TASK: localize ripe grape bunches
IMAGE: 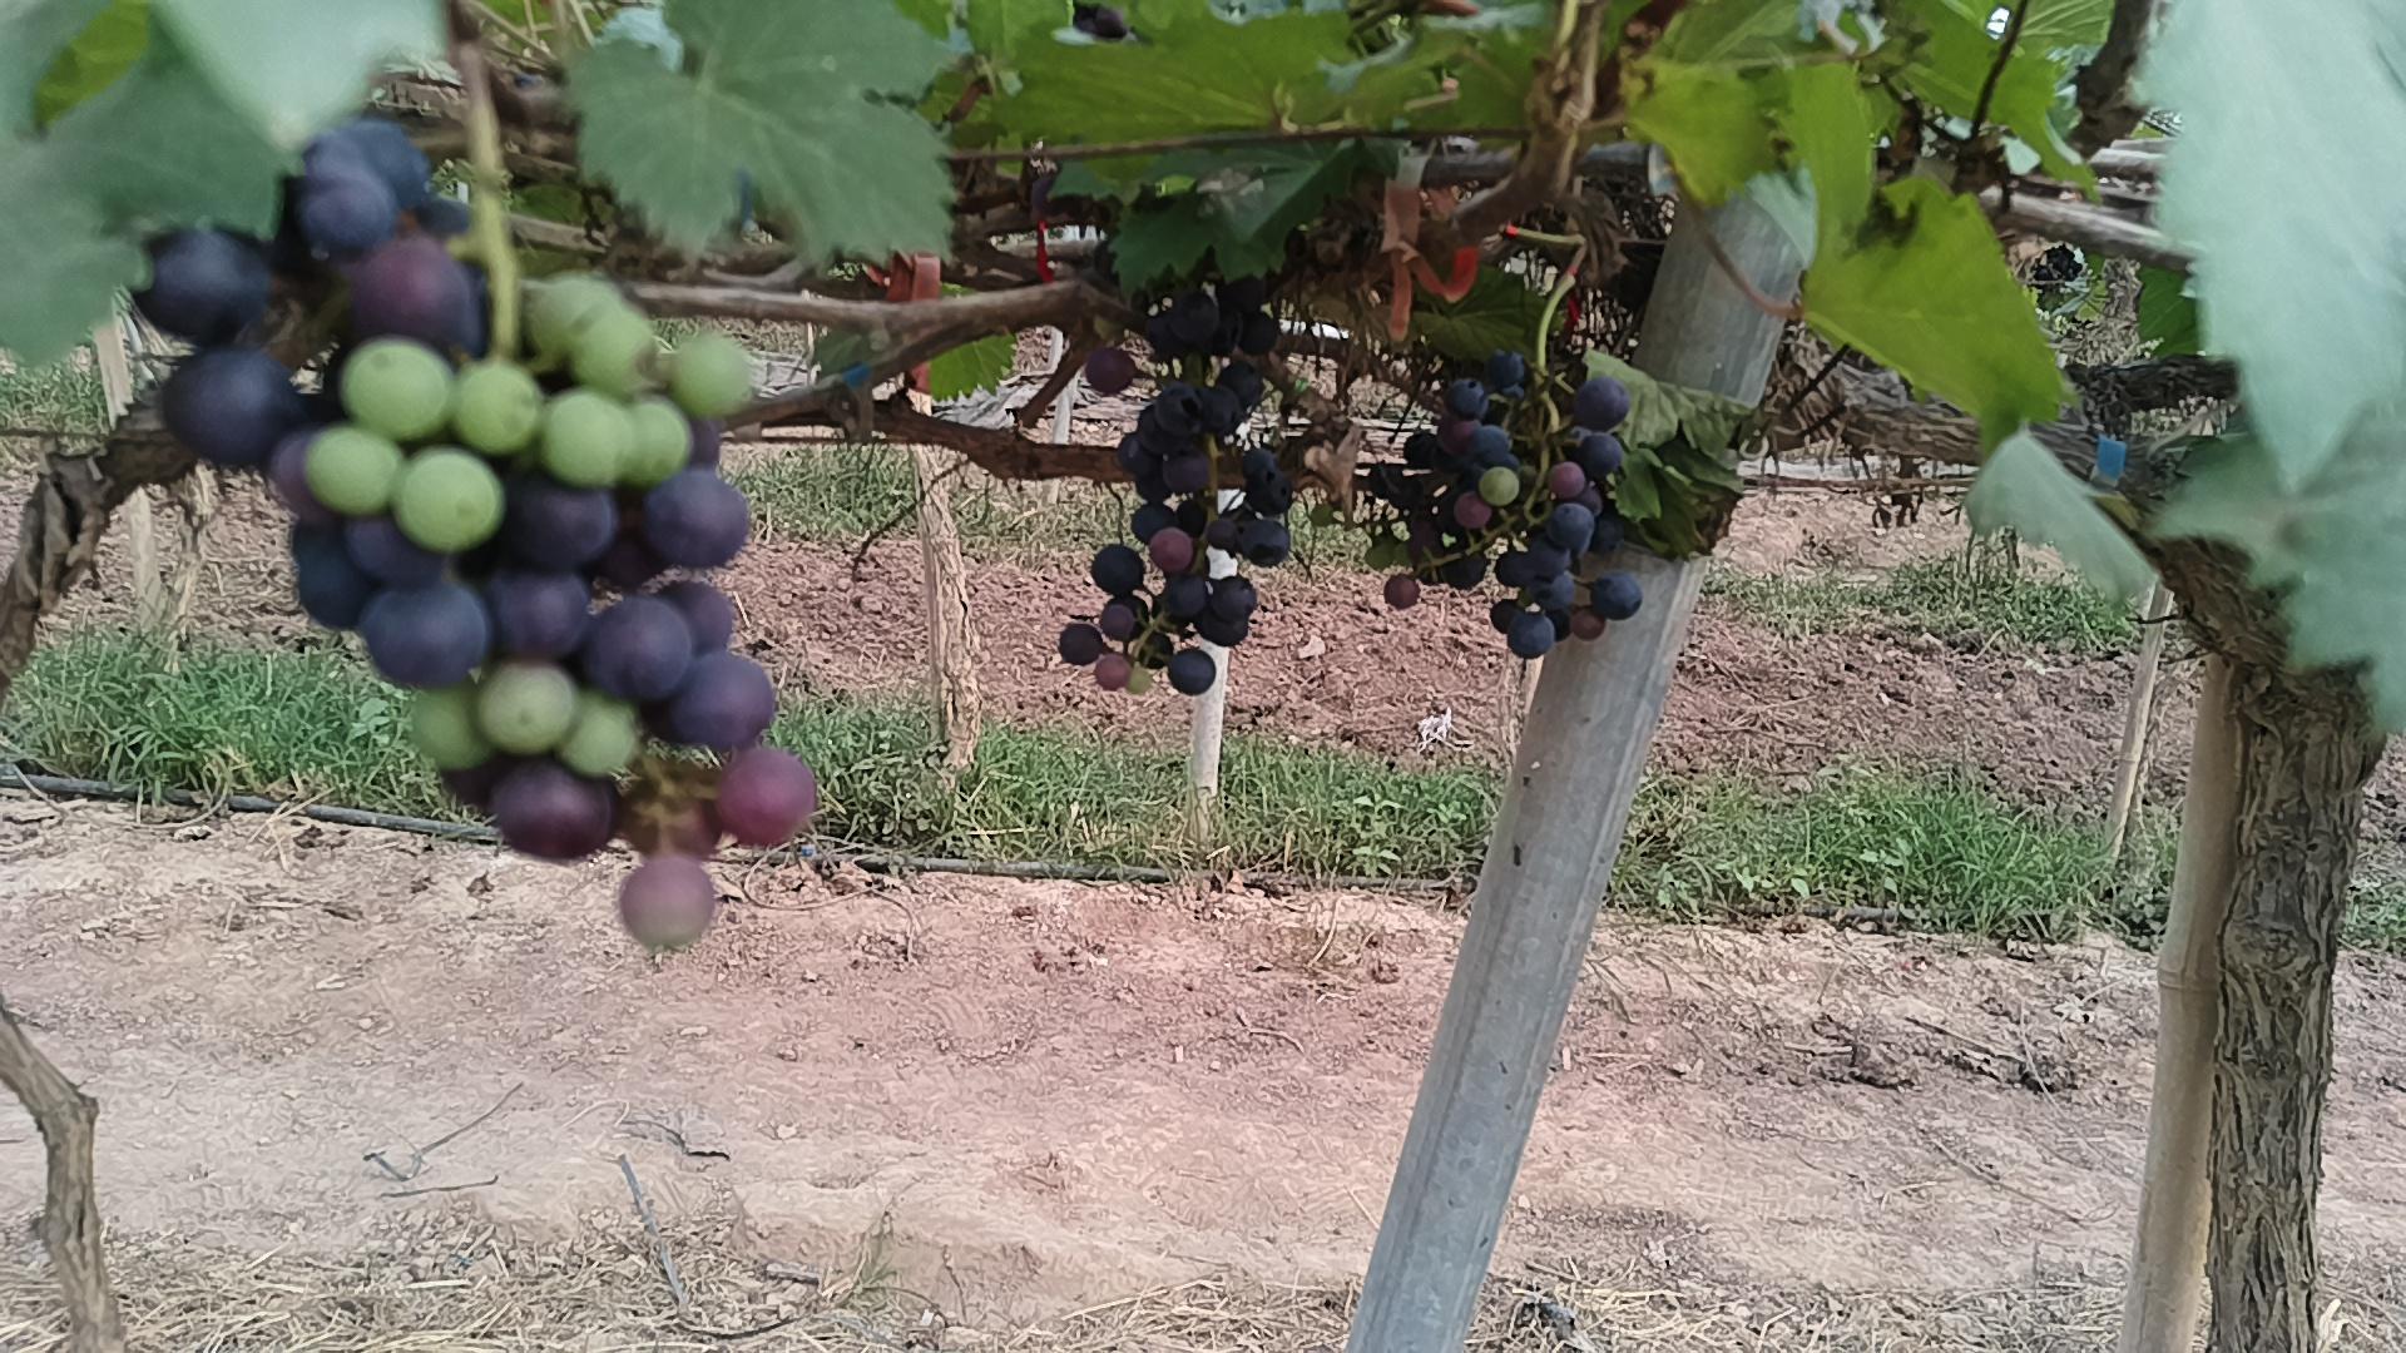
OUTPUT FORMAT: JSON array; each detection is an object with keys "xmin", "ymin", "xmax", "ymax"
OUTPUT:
[
  {"xmin": 1059, "ymin": 282, "xmax": 1292, "ymax": 694},
  {"xmin": 2029, "ymin": 244, "xmax": 2084, "ymax": 308}
]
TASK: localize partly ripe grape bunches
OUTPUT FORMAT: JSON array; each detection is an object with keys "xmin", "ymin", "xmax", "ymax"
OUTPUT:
[
  {"xmin": 132, "ymin": 119, "xmax": 815, "ymax": 947},
  {"xmin": 1366, "ymin": 351, "xmax": 1640, "ymax": 659}
]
